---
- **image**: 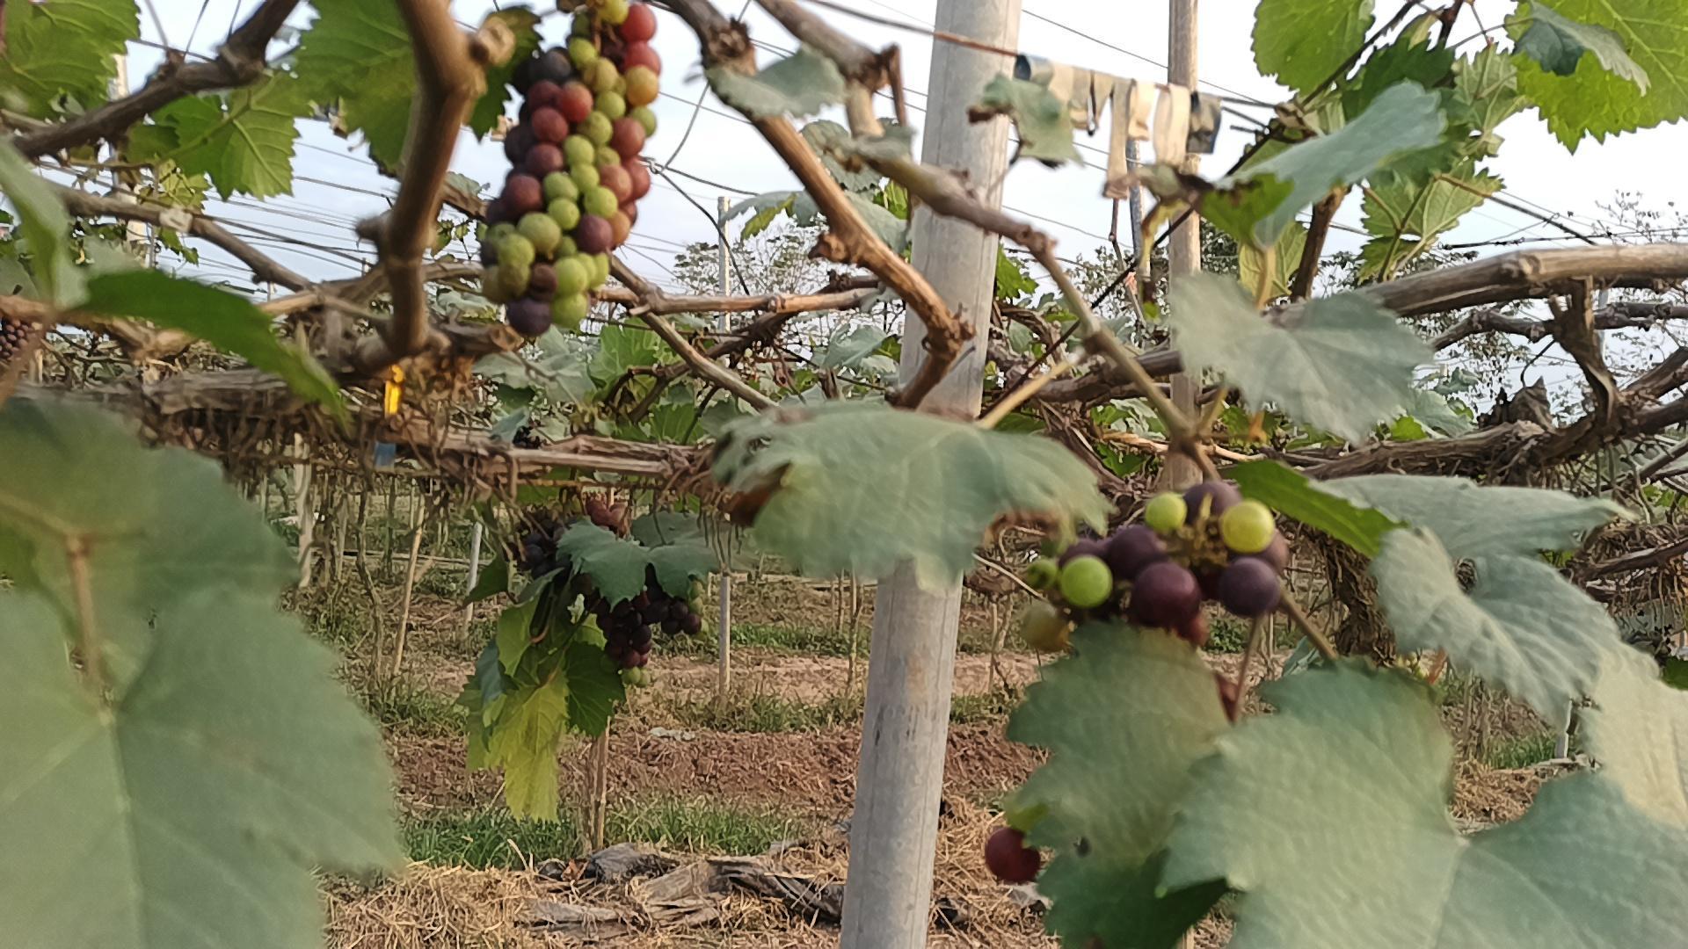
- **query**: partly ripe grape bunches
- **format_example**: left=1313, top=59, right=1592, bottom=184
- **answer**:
left=501, top=499, right=631, bottom=594
left=480, top=0, right=660, bottom=336
left=1022, top=481, right=1288, bottom=650
left=586, top=565, right=709, bottom=669
left=983, top=808, right=1048, bottom=882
